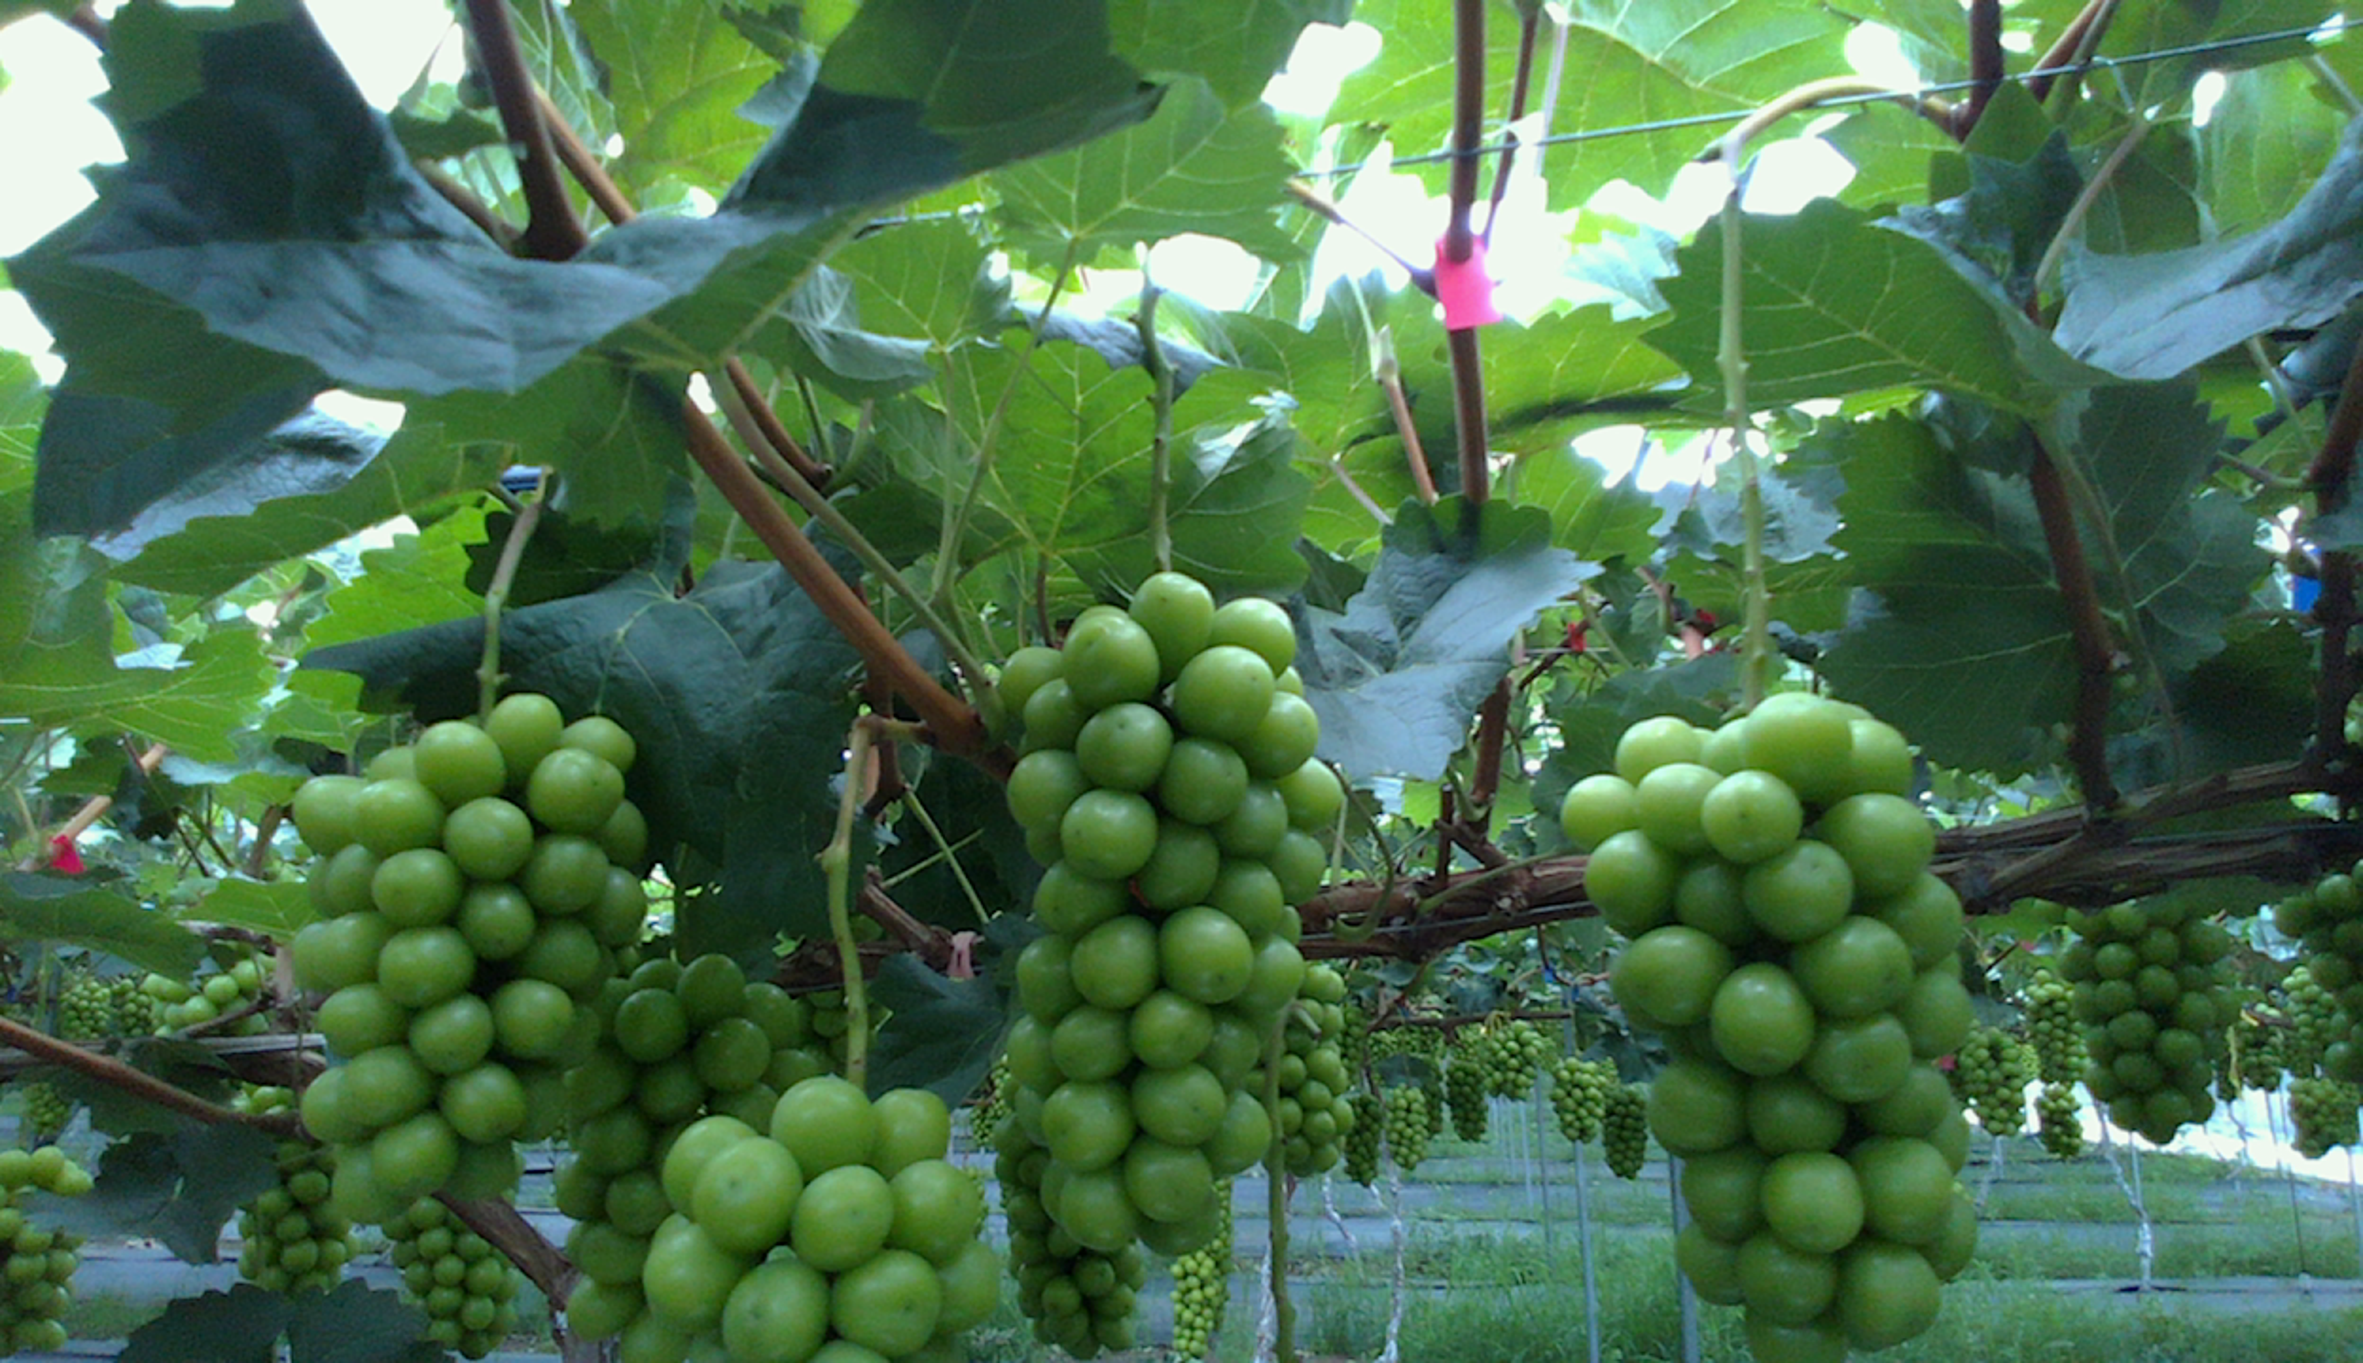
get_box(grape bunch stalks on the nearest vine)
[1719,78,1952,717]
[831,710,928,1090]
[1140,259,1174,574]
[479,502,542,727]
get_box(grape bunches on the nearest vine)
[288,695,649,1221]
[553,939,820,1361]
[1560,691,1979,1361]
[646,1075,1004,1361]
[996,570,1341,1257]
